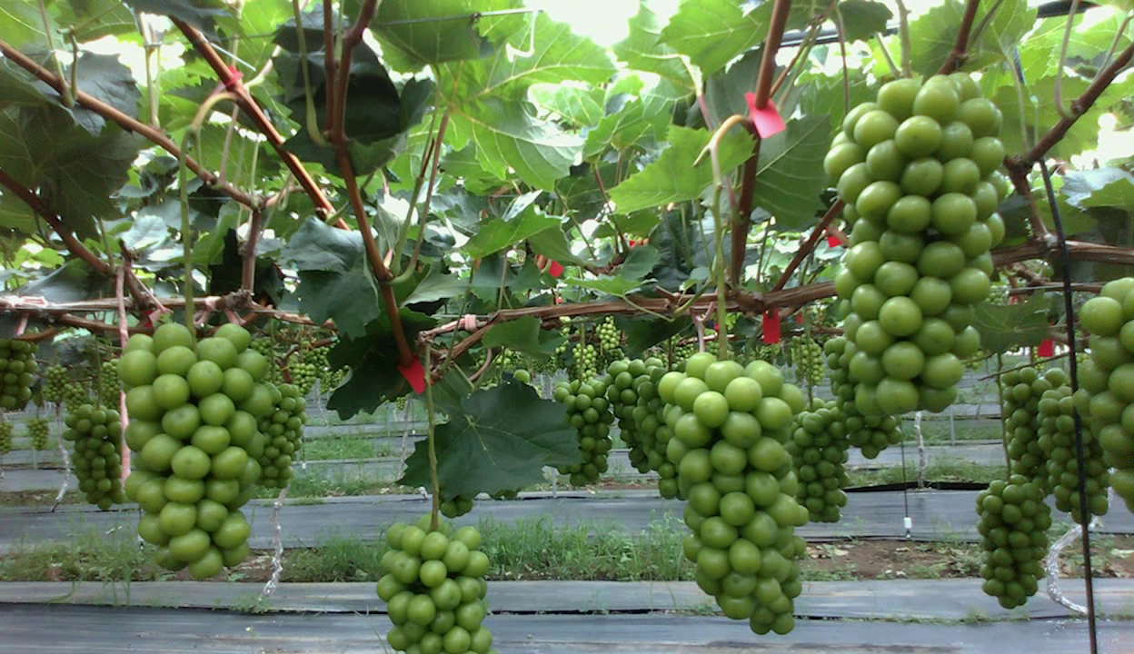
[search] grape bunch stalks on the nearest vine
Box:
[894,1,912,77]
[423,345,439,533]
[708,114,754,361]
[179,91,237,343]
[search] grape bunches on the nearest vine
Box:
[375,513,499,653]
[658,352,809,635]
[823,72,1011,418]
[115,322,281,580]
